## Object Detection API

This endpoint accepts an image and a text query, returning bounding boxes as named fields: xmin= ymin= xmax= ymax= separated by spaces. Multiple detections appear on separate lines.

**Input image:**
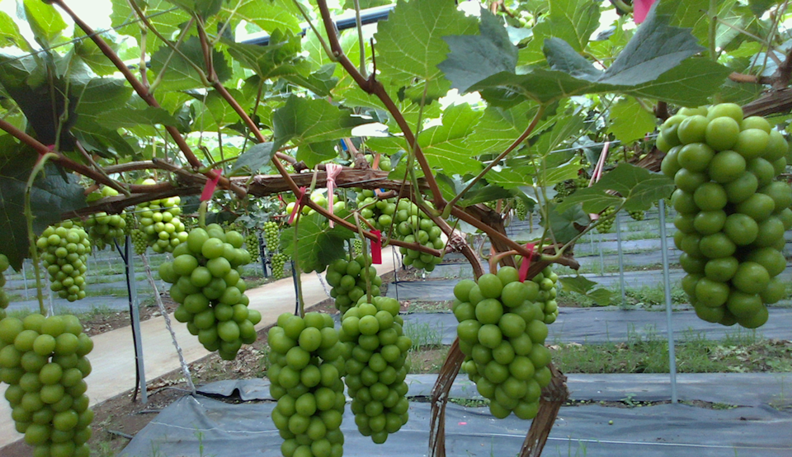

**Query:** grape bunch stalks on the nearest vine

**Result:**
xmin=23 ymin=153 xmax=51 ymax=315
xmin=490 ymin=250 xmax=514 ymax=273
xmin=198 ymin=201 xmax=208 ymax=230
xmin=292 ymin=208 xmax=305 ymax=316
xmin=354 ymin=212 xmax=372 ymax=302
xmin=709 ymin=1 xmax=720 ymax=102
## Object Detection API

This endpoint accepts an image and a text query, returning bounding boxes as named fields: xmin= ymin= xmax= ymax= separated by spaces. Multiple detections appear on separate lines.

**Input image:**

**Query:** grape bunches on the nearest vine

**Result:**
xmin=452 ymin=267 xmax=553 ymax=419
xmin=157 ymin=223 xmax=261 ymax=361
xmin=267 ymin=311 xmax=346 ymax=456
xmin=0 ymin=314 xmax=93 ymax=456
xmin=654 ymin=103 xmax=791 ymax=329
xmin=338 ymin=295 xmax=412 ymax=445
